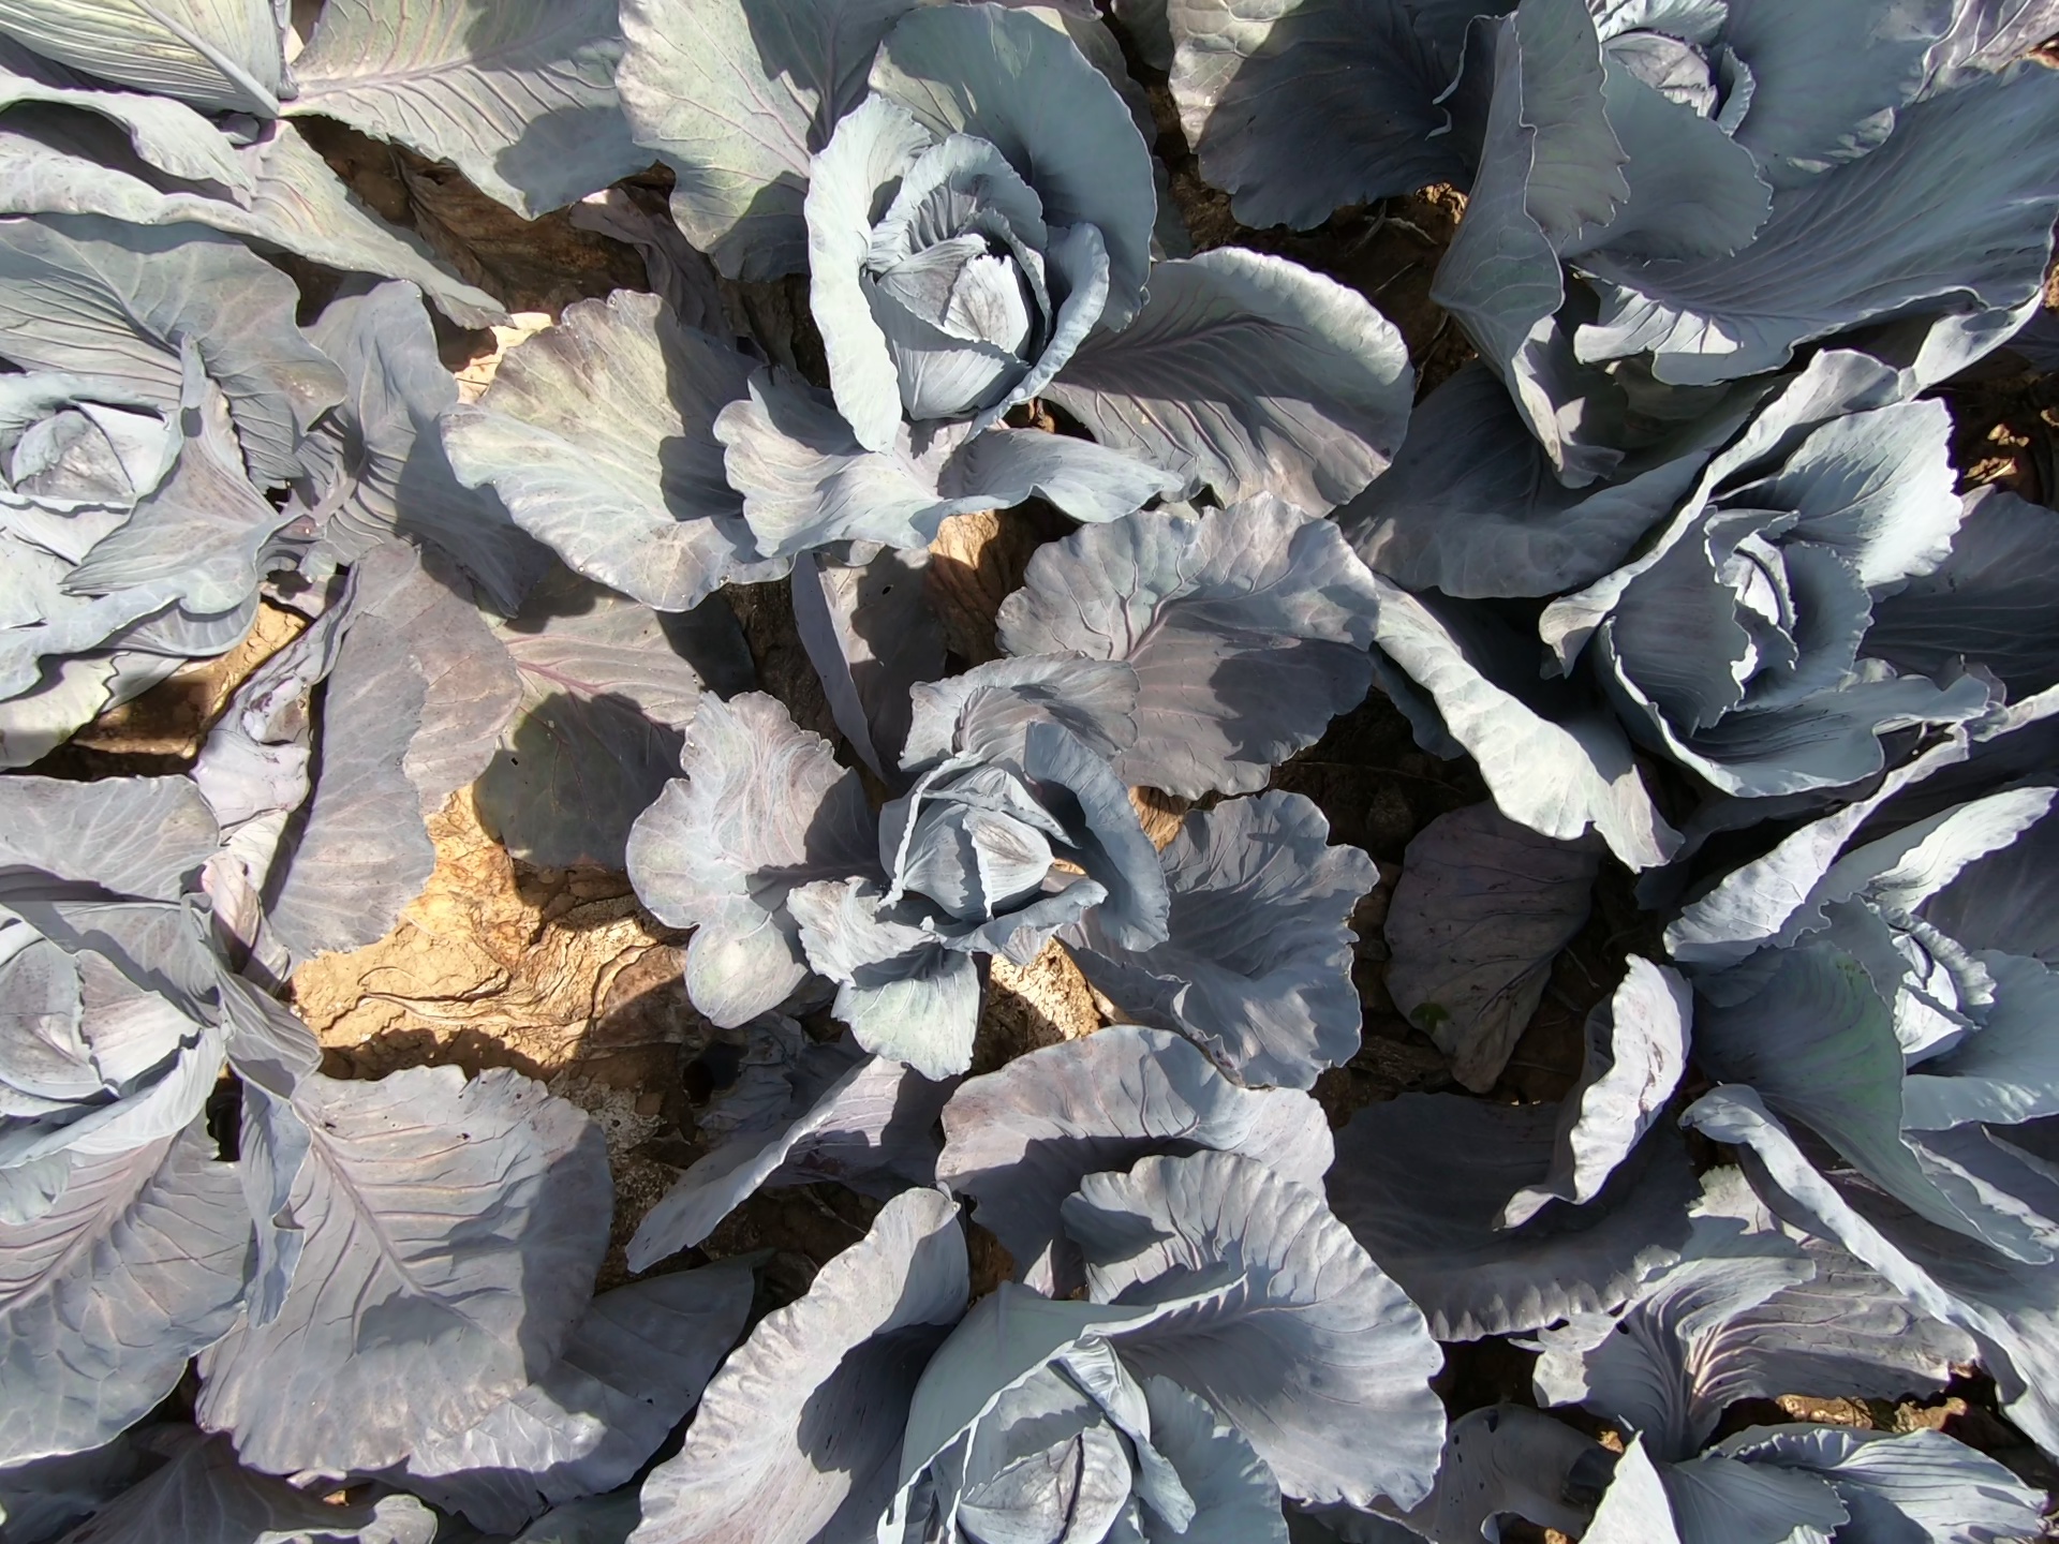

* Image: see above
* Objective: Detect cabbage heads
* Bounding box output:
[1642,522,1790,693]
[1542,28,1718,196]
[11,407,188,536]
[878,246,1035,406]
[929,1309,1149,1542]
[912,789,1049,922]
[2,902,223,1103]
[1798,918,1962,1081]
